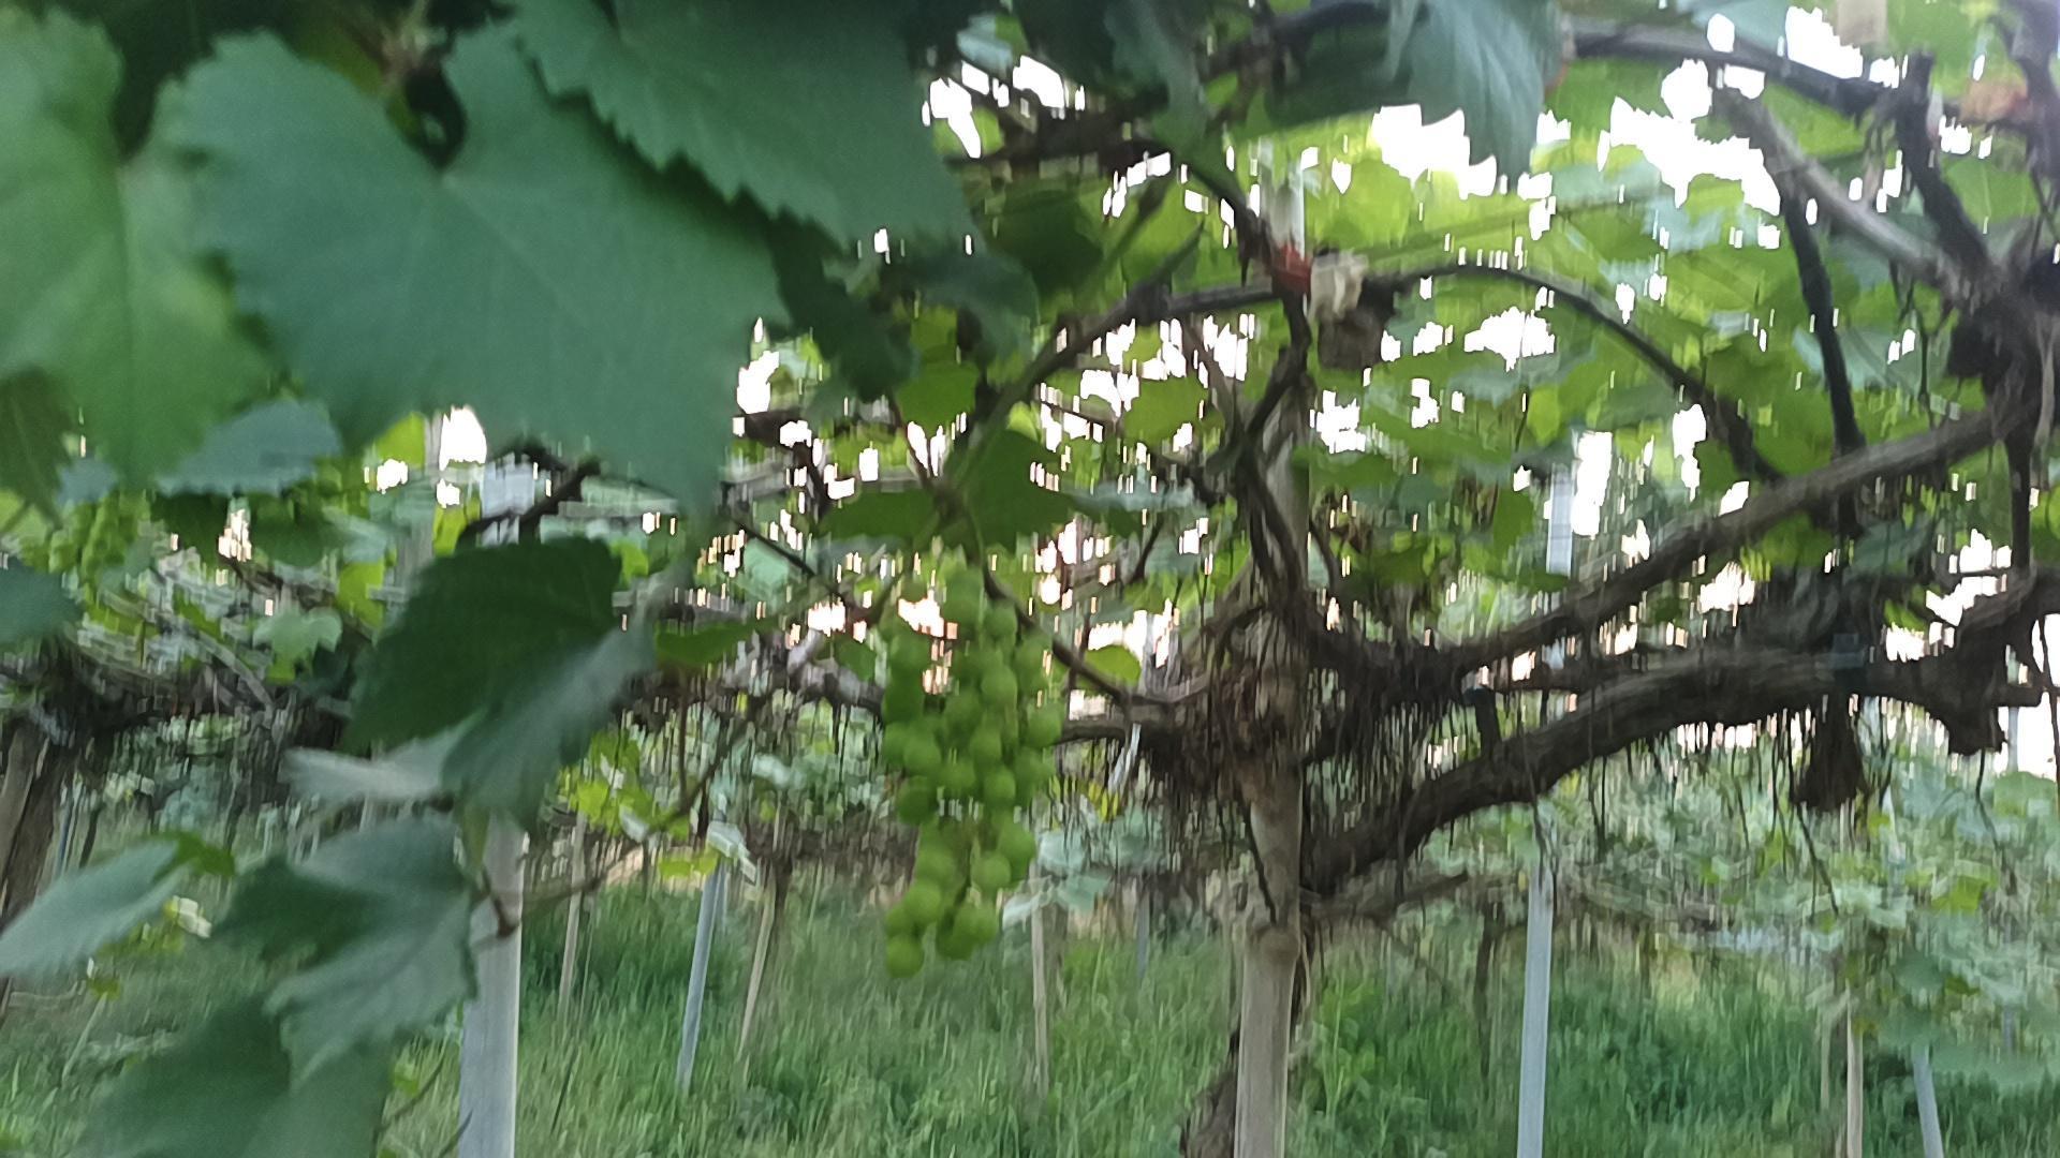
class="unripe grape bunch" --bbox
[878,562,1062,977]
